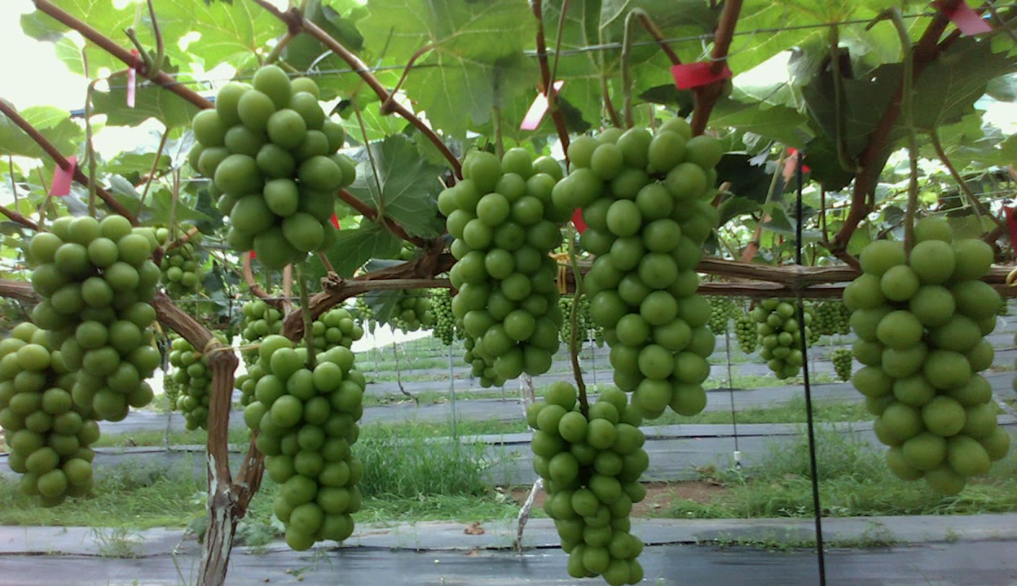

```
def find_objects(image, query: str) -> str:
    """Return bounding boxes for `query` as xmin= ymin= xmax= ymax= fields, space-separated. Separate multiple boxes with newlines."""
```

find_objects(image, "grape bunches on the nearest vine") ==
xmin=187 ymin=64 xmax=356 ymax=269
xmin=437 ymin=148 xmax=568 ymax=381
xmin=242 ymin=334 xmax=365 ymax=551
xmin=0 ymin=322 xmax=101 ymax=509
xmin=843 ymin=216 xmax=1011 ymax=497
xmin=523 ymin=380 xmax=649 ymax=585
xmin=30 ymin=214 xmax=161 ymax=423
xmin=553 ymin=118 xmax=722 ymax=421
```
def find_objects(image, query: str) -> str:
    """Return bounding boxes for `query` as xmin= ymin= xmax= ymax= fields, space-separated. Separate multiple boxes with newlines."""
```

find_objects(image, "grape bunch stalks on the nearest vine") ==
xmin=37 ymin=195 xmax=52 ymax=231
xmin=882 ymin=7 xmax=919 ymax=252
xmin=85 ymin=69 xmax=127 ymax=216
xmin=622 ymin=9 xmax=681 ymax=127
xmin=567 ymin=221 xmax=588 ymax=418
xmin=263 ymin=36 xmax=290 ymax=64
xmin=297 ymin=265 xmax=316 ymax=368
xmin=491 ymin=107 xmax=504 ymax=157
